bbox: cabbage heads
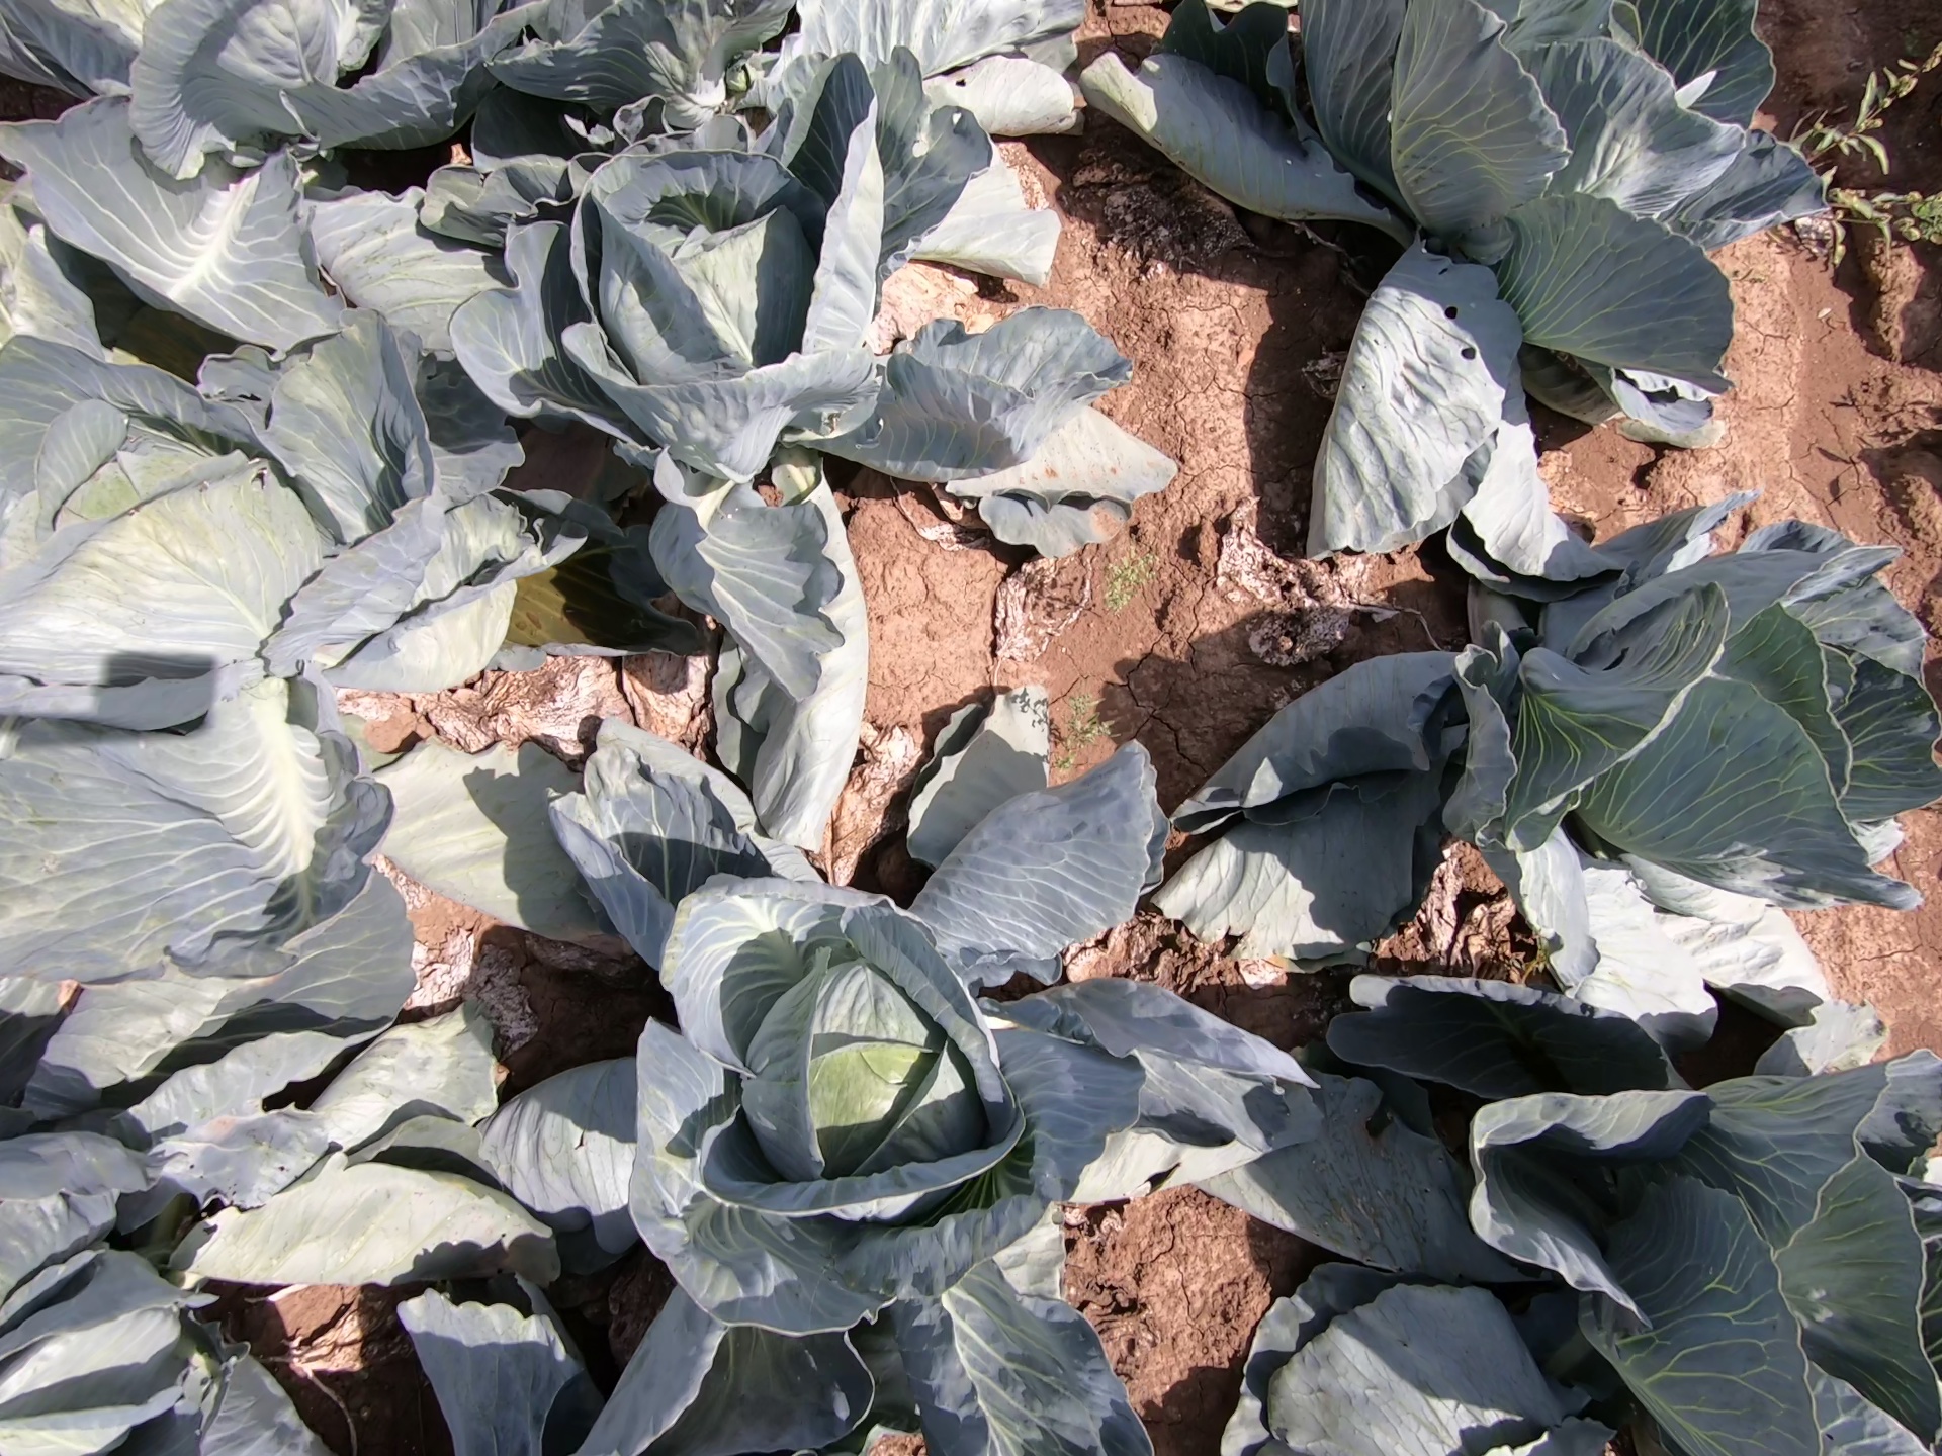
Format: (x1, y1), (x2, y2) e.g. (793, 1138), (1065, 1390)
(1456, 23), (1652, 260)
(745, 960), (990, 1221)
(602, 213), (762, 395)
(51, 453), (318, 681)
